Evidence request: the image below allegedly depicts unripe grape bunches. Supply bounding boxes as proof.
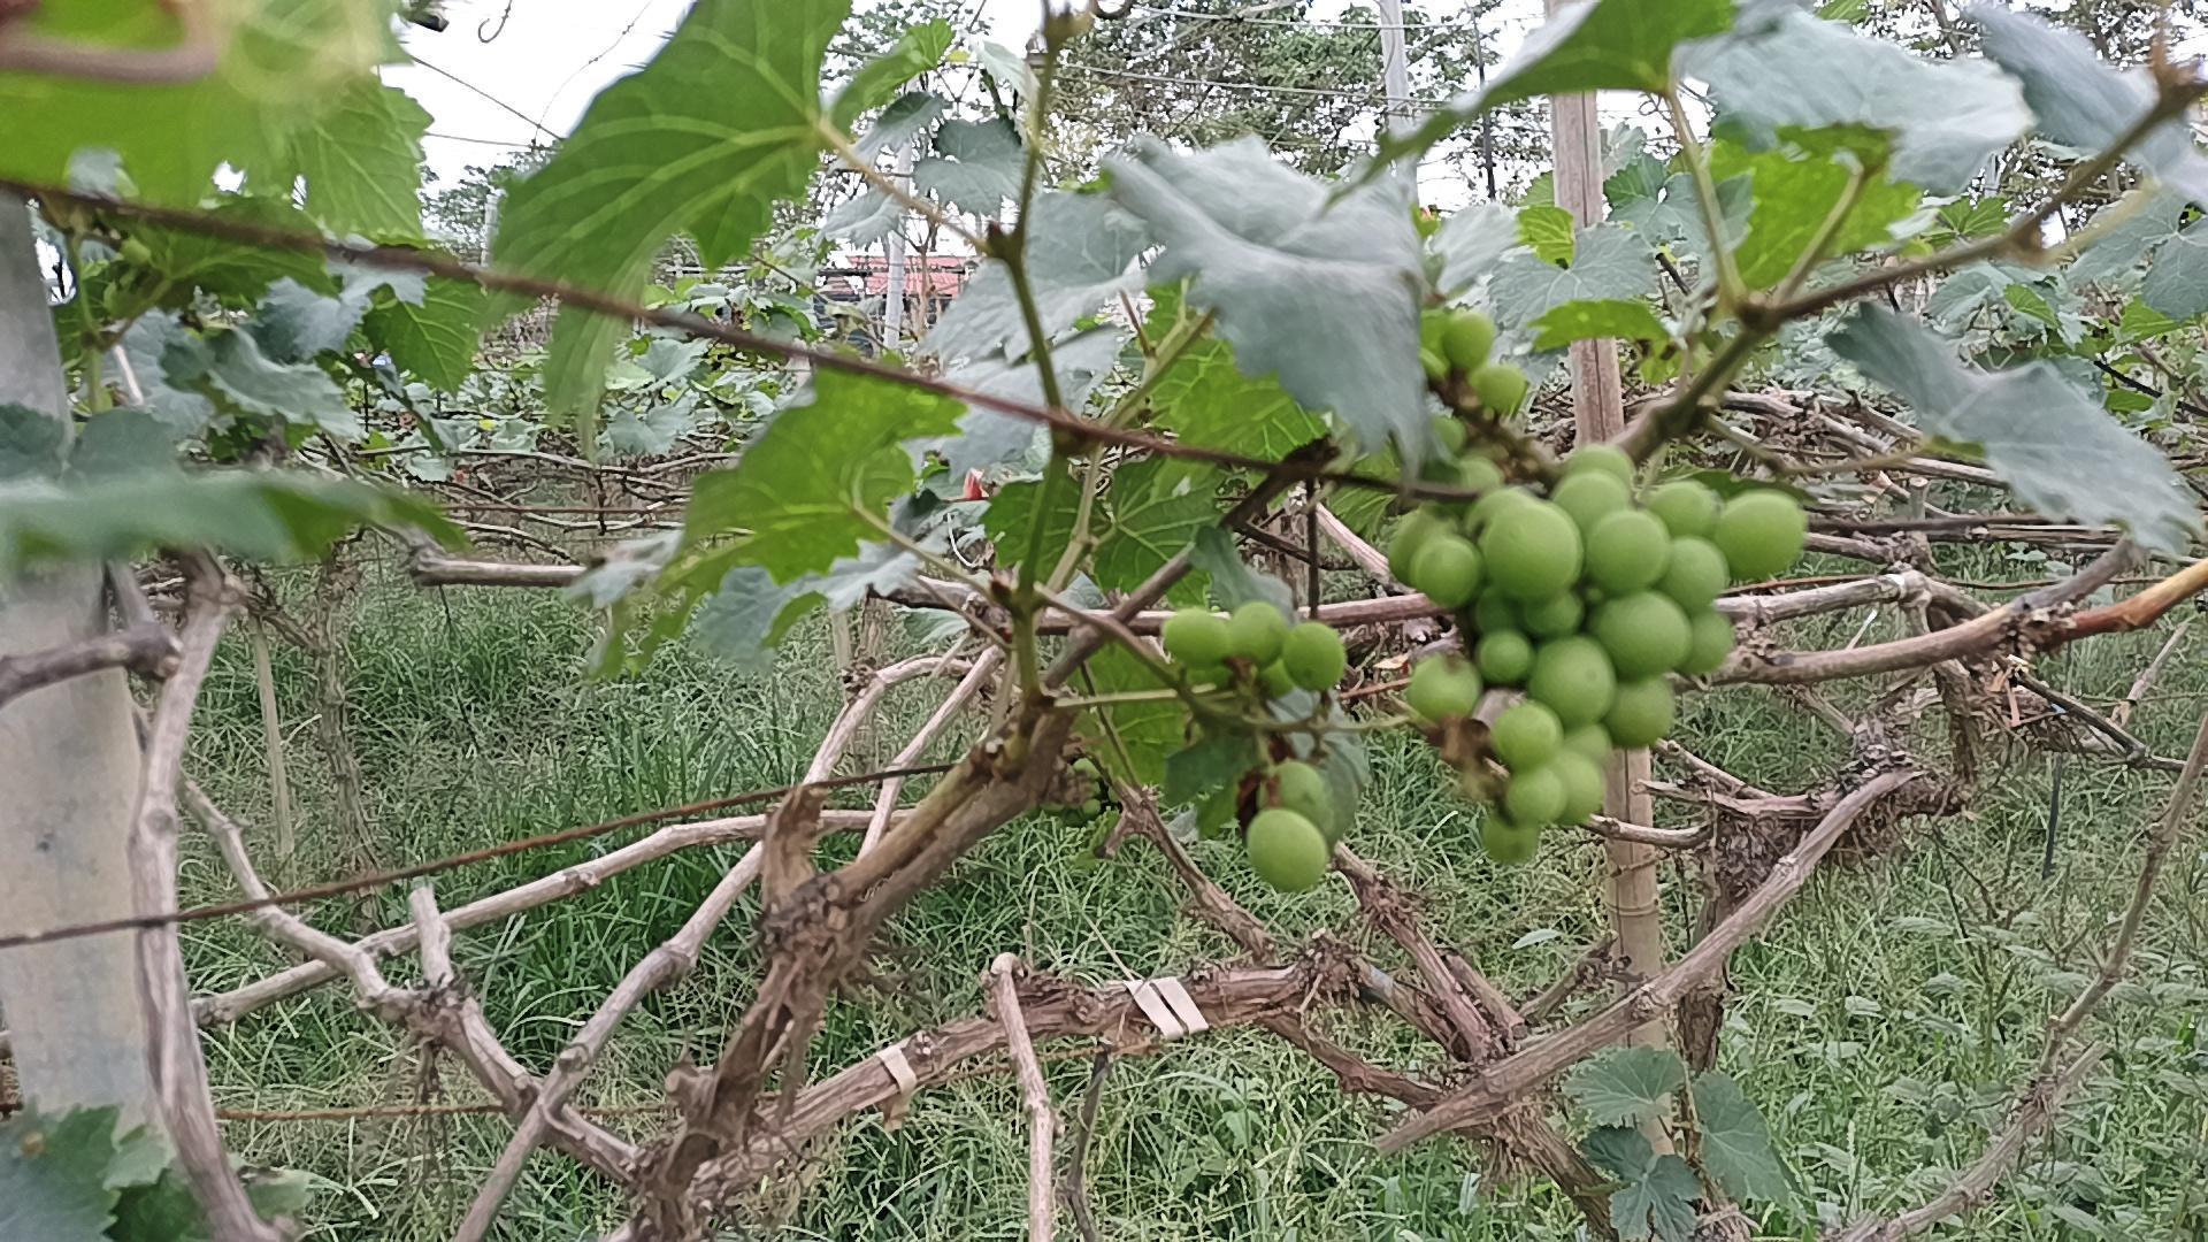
[1161,601,1344,890]
[1390,308,1805,865]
